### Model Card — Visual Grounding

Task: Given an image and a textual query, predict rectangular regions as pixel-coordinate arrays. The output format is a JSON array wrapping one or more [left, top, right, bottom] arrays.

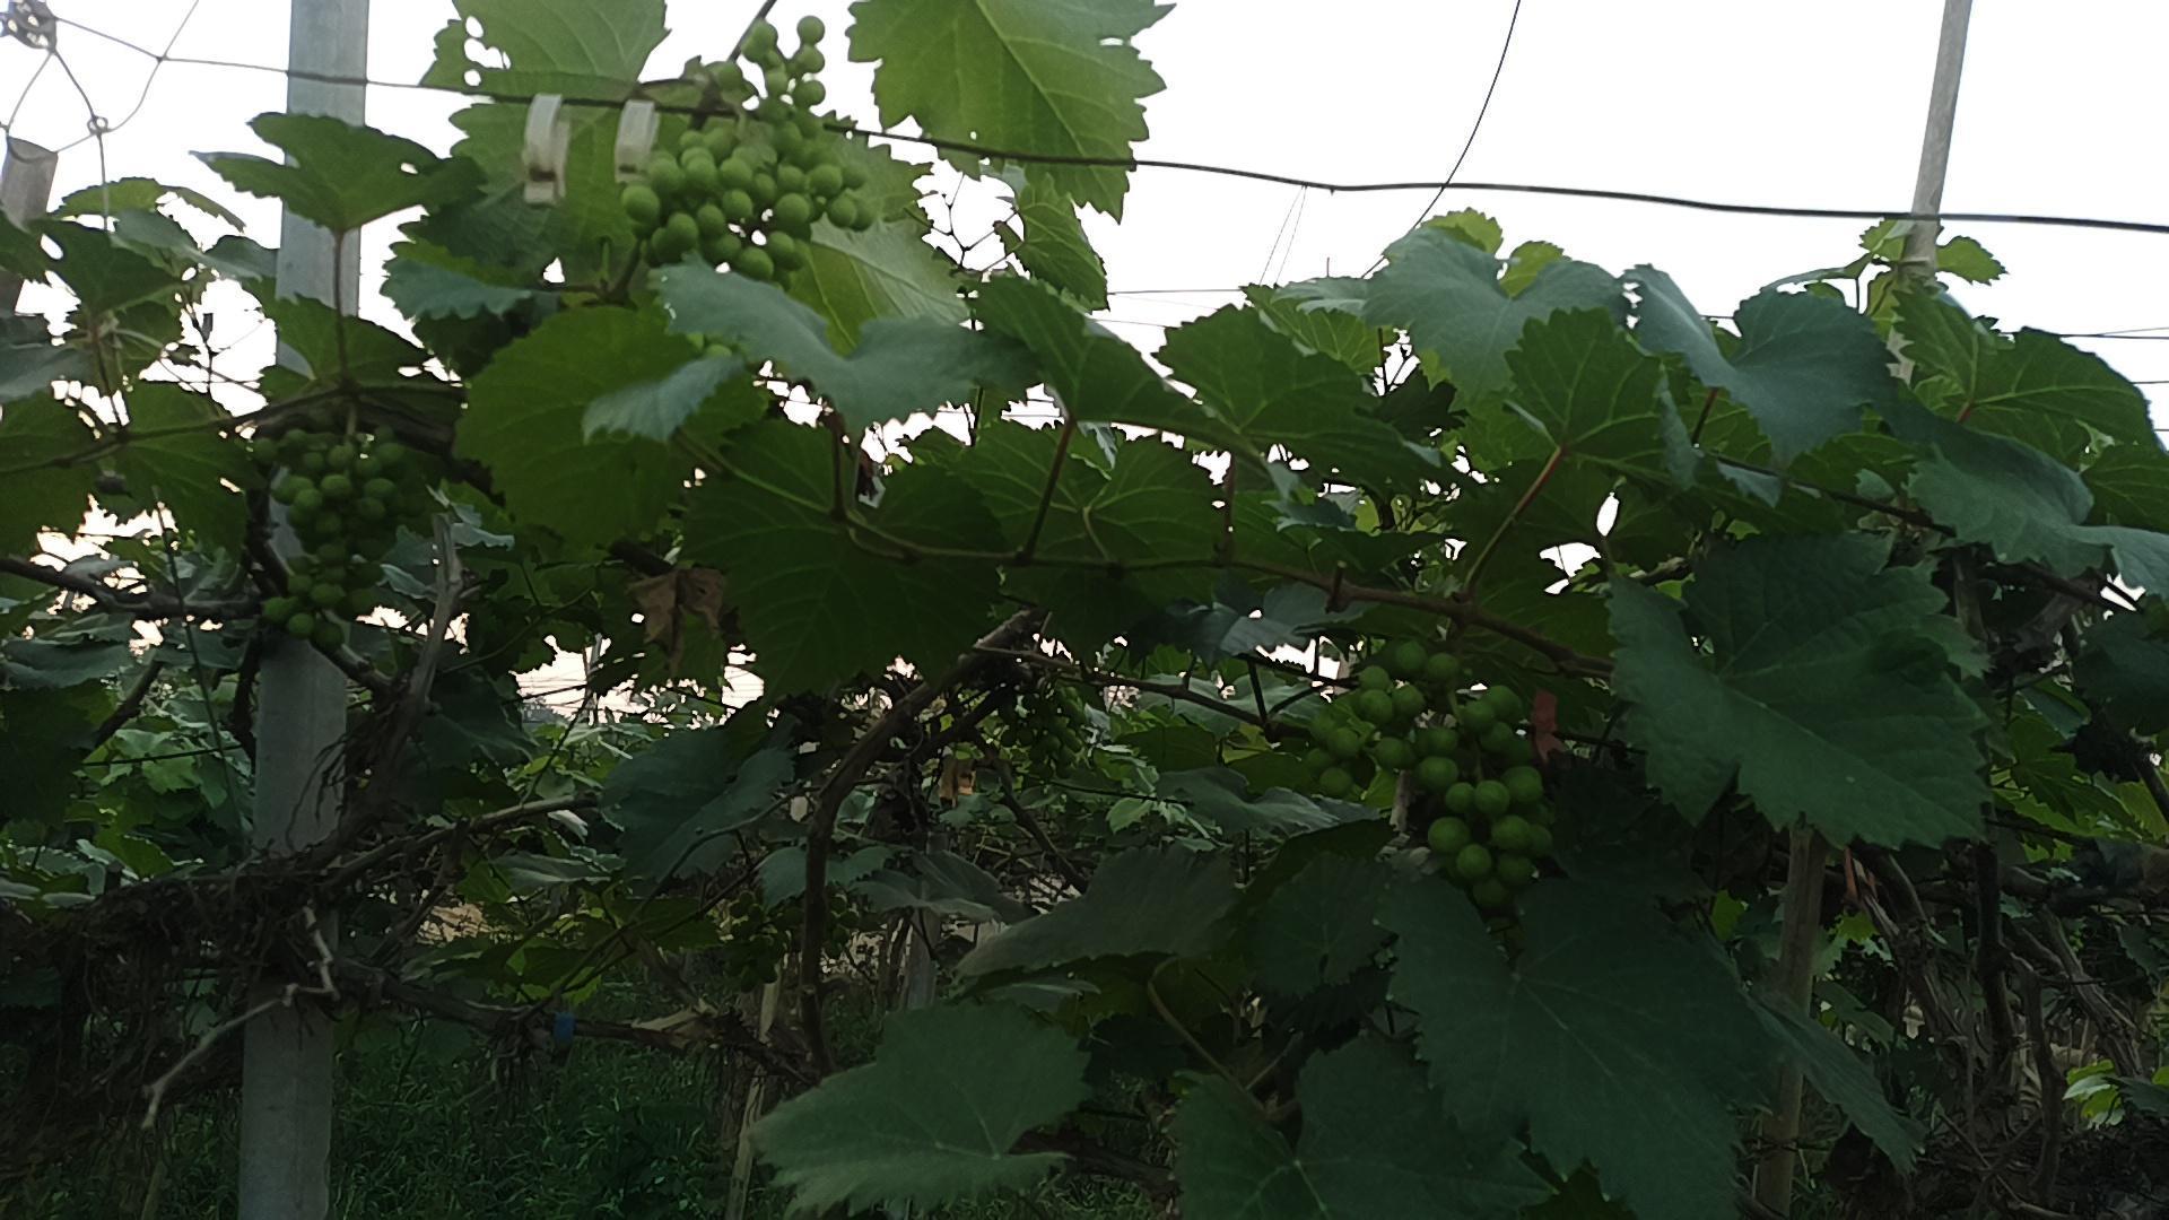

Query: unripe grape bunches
[[252, 428, 429, 652], [1303, 648, 1551, 908], [728, 889, 859, 990], [999, 685, 1089, 776], [619, 15, 890, 286]]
